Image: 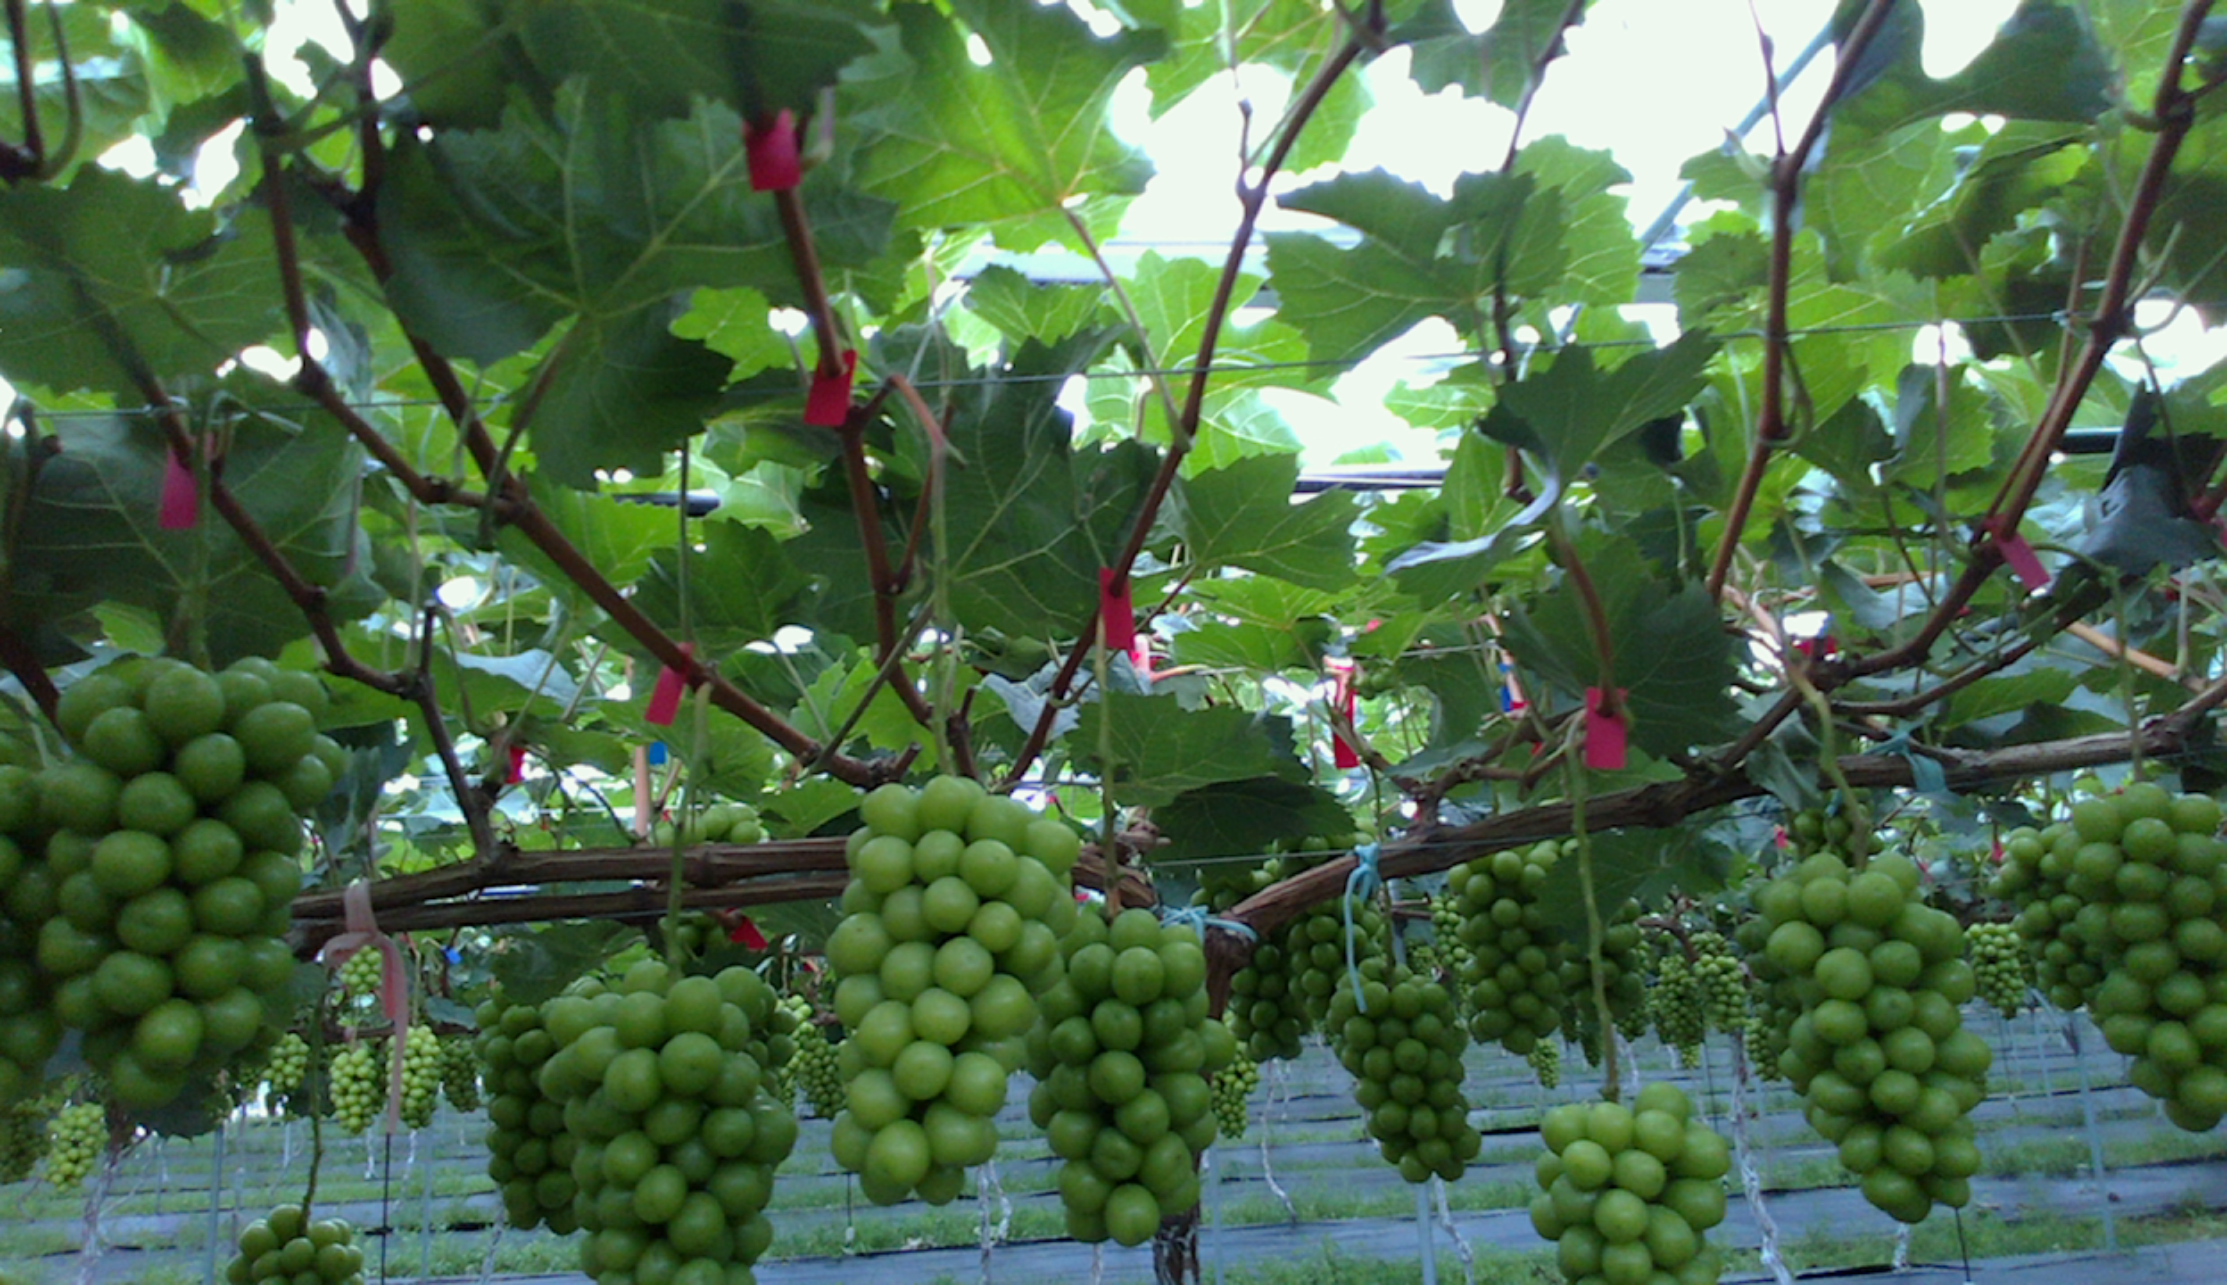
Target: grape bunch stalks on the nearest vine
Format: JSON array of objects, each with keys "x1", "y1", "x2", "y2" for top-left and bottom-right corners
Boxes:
[
  {"x1": 666, "y1": 682, "x2": 710, "y2": 985},
  {"x1": 1565, "y1": 710, "x2": 1619, "y2": 1103},
  {"x1": 1774, "y1": 651, "x2": 1870, "y2": 873},
  {"x1": 189, "y1": 391, "x2": 252, "y2": 673},
  {"x1": 2031, "y1": 541, "x2": 2145, "y2": 782},
  {"x1": 890, "y1": 375, "x2": 965, "y2": 776},
  {"x1": 1090, "y1": 619, "x2": 1130, "y2": 924}
]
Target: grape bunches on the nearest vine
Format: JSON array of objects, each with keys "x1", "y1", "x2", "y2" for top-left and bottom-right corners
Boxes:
[
  {"x1": 12, "y1": 655, "x2": 350, "y2": 1112},
  {"x1": 824, "y1": 776, "x2": 1080, "y2": 1210},
  {"x1": 1529, "y1": 1082, "x2": 1727, "y2": 1283},
  {"x1": 1024, "y1": 908, "x2": 1238, "y2": 1251},
  {"x1": 1758, "y1": 851, "x2": 1990, "y2": 1224},
  {"x1": 2054, "y1": 783, "x2": 2225, "y2": 1132},
  {"x1": 539, "y1": 962, "x2": 799, "y2": 1283}
]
